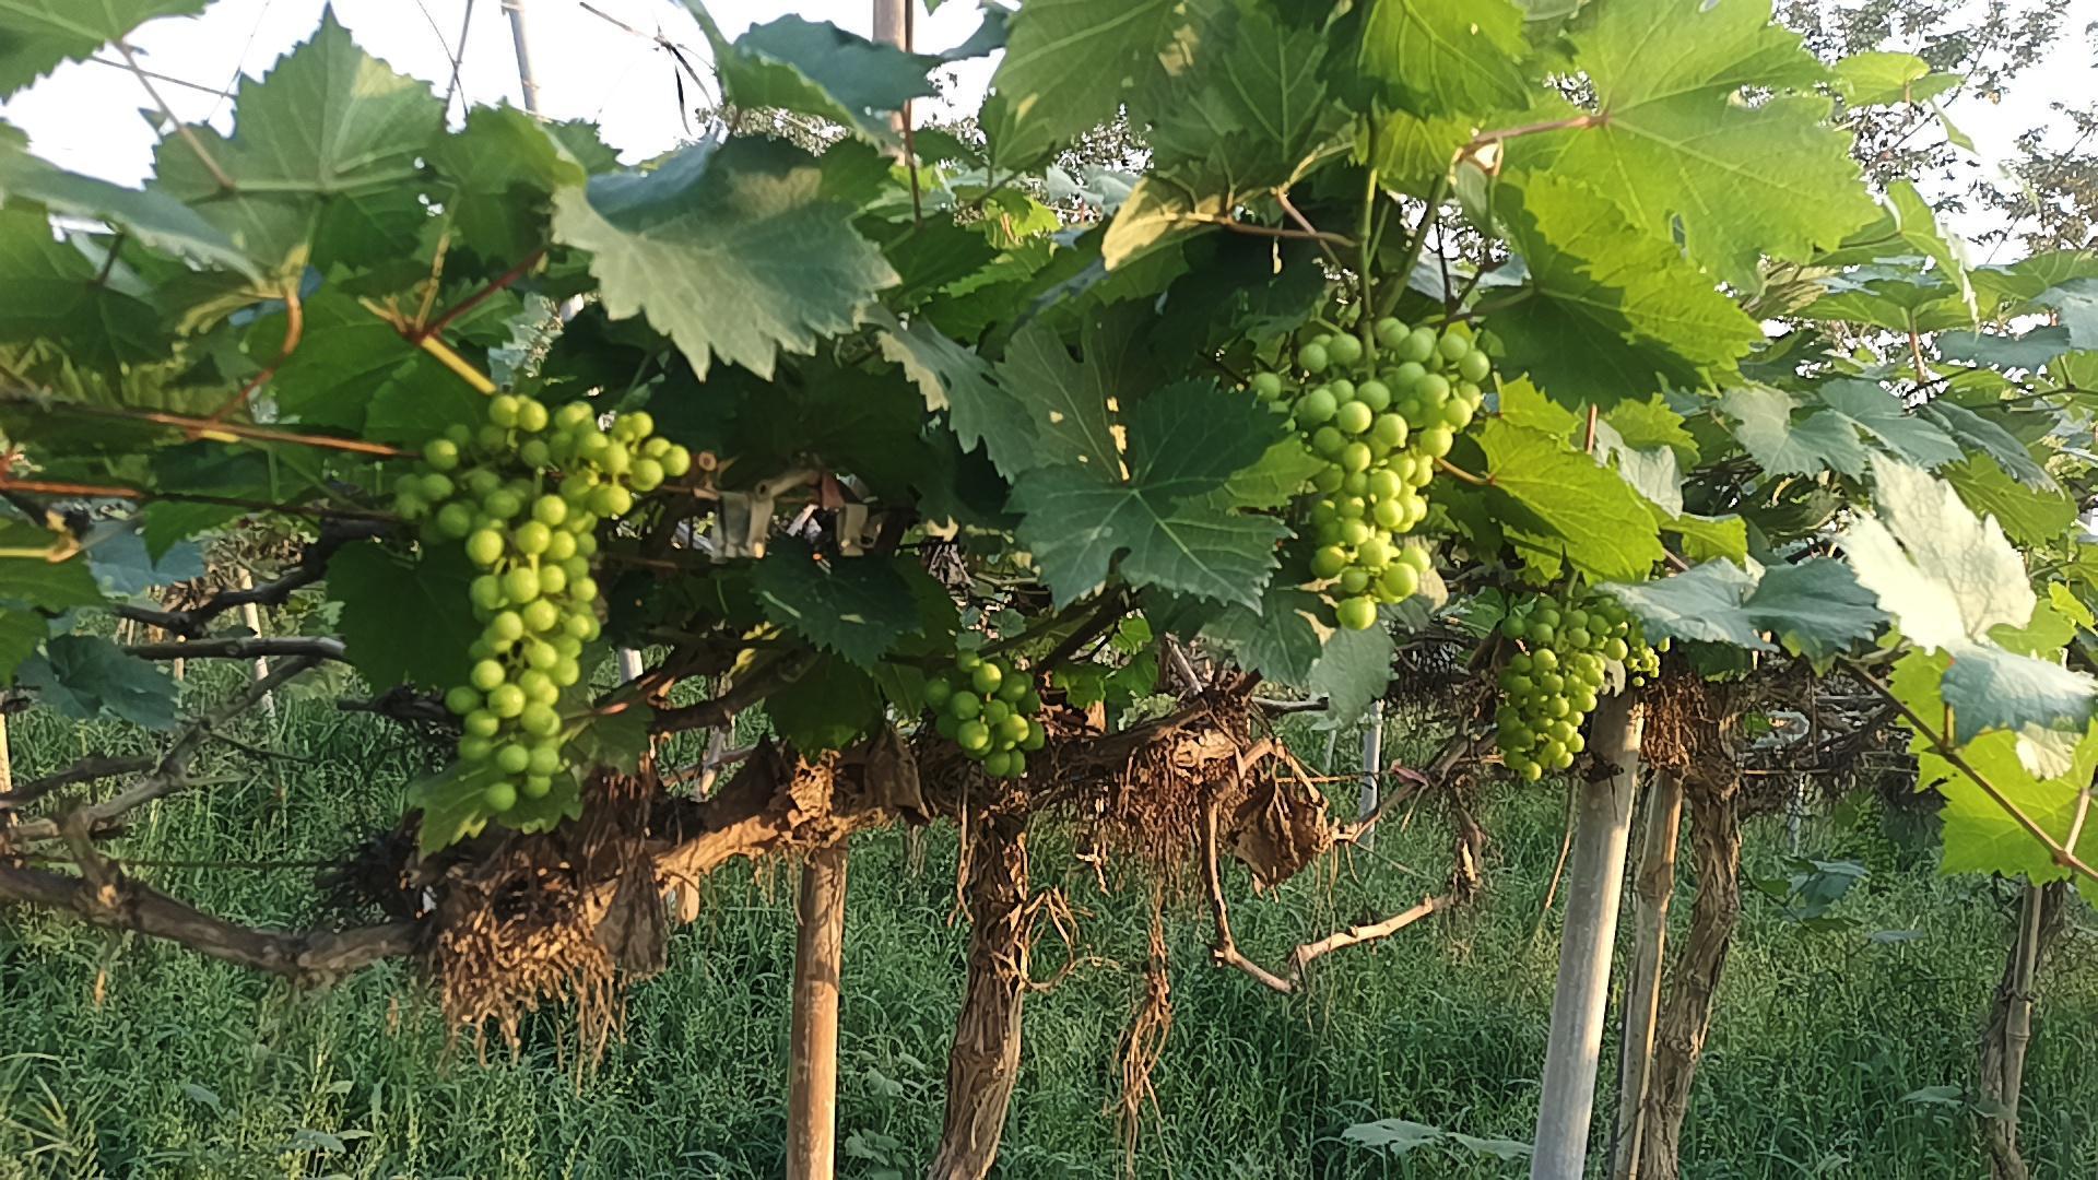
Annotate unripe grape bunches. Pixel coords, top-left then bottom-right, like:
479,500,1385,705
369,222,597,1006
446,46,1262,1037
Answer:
923,652,1045,776
1251,318,1489,627
1496,586,1669,781
394,394,691,811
